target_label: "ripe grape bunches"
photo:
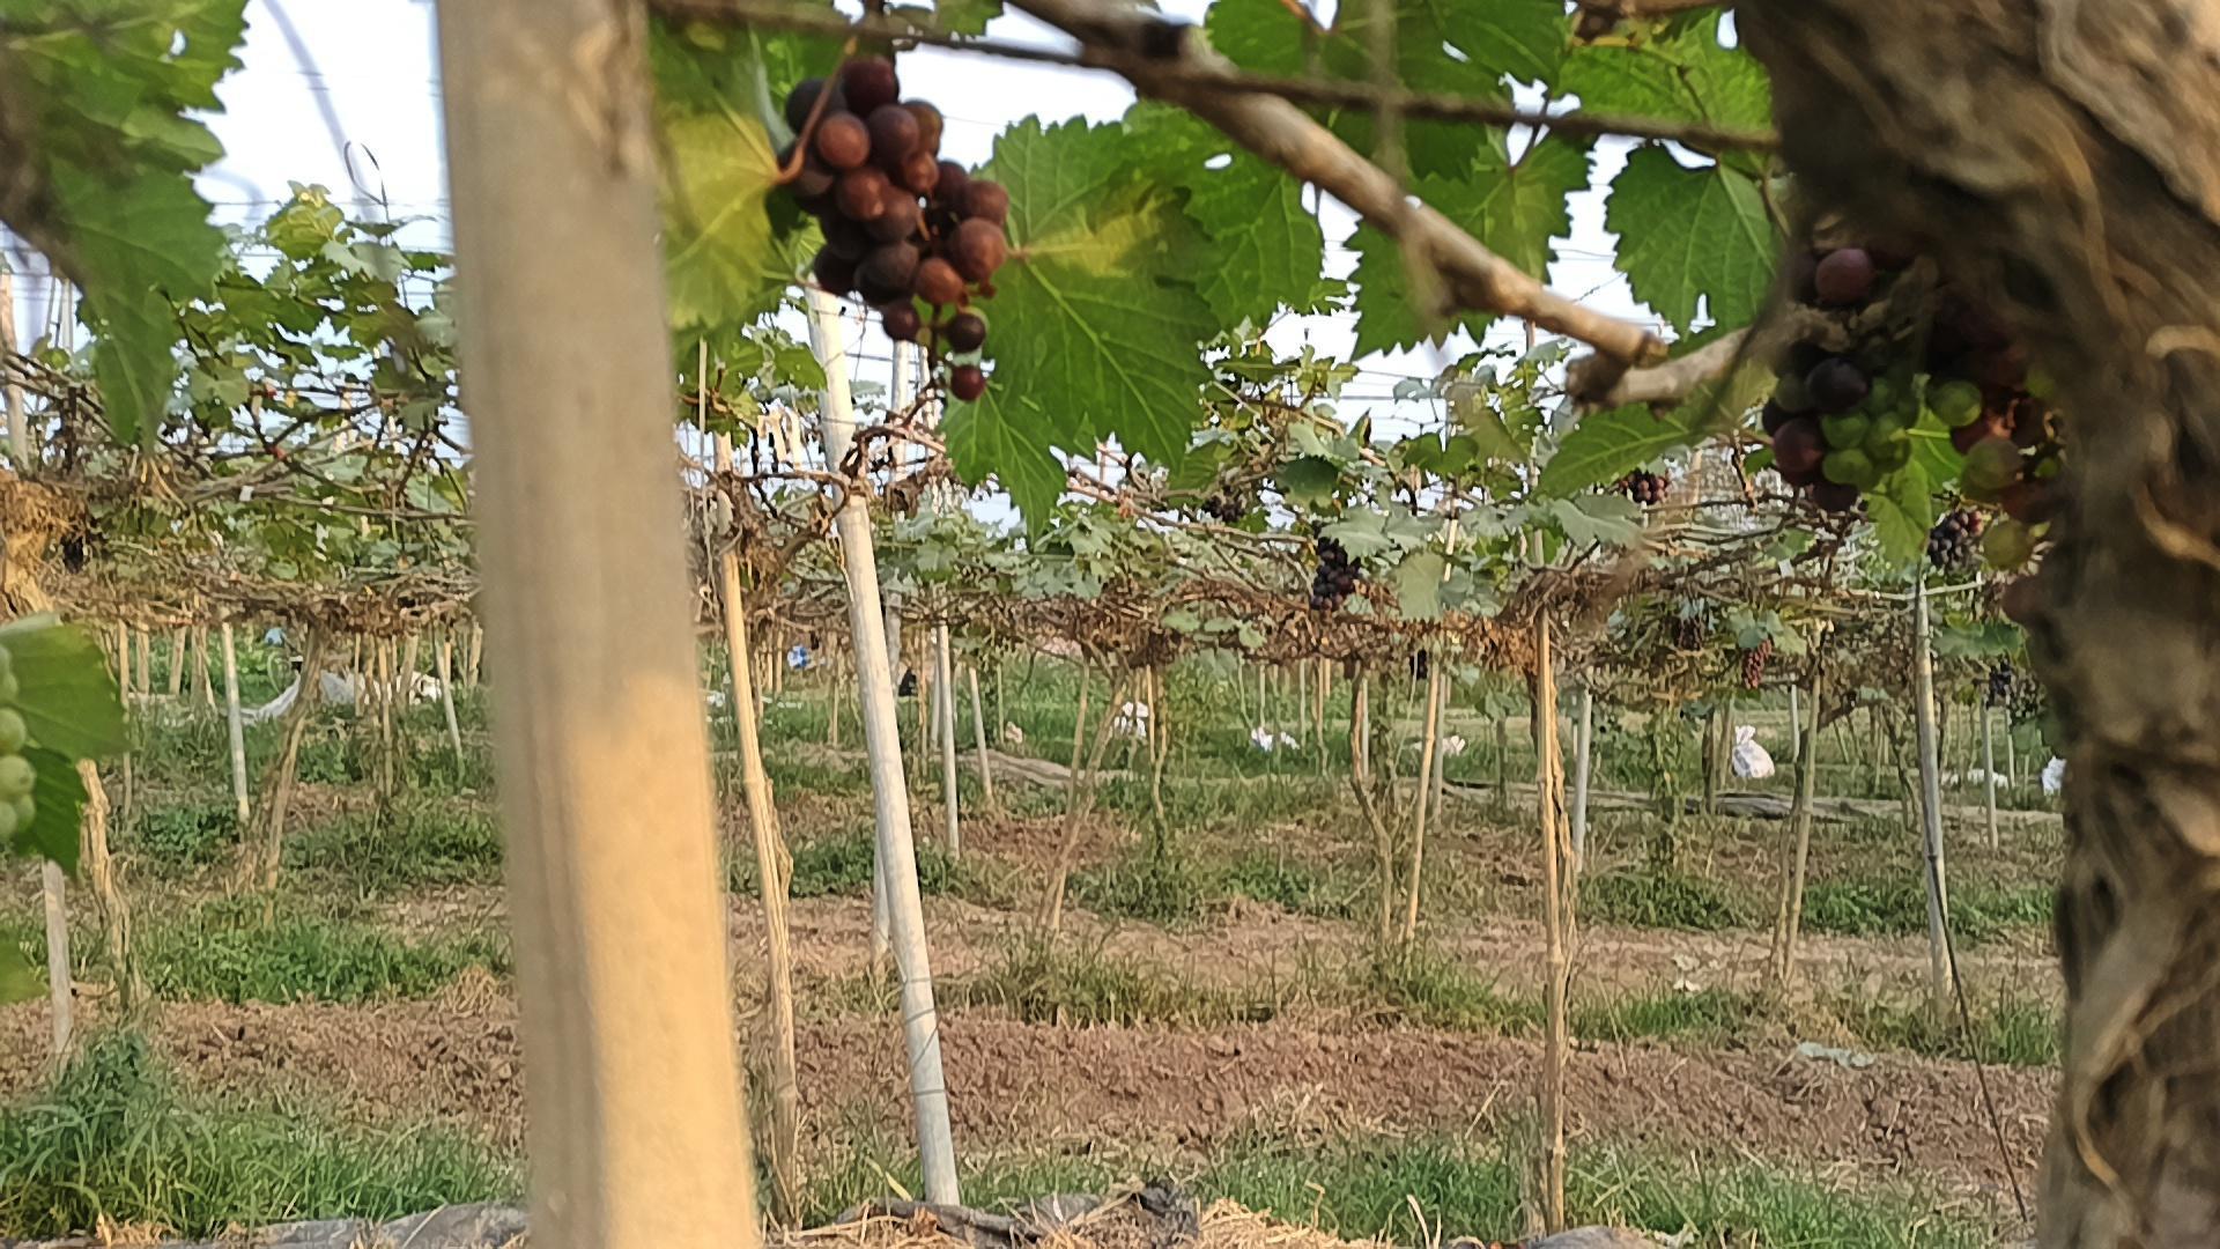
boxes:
[1310,535,1362,612]
[775,59,1014,355]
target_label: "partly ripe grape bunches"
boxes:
[1951,384,2062,570]
[1762,343,1919,510]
